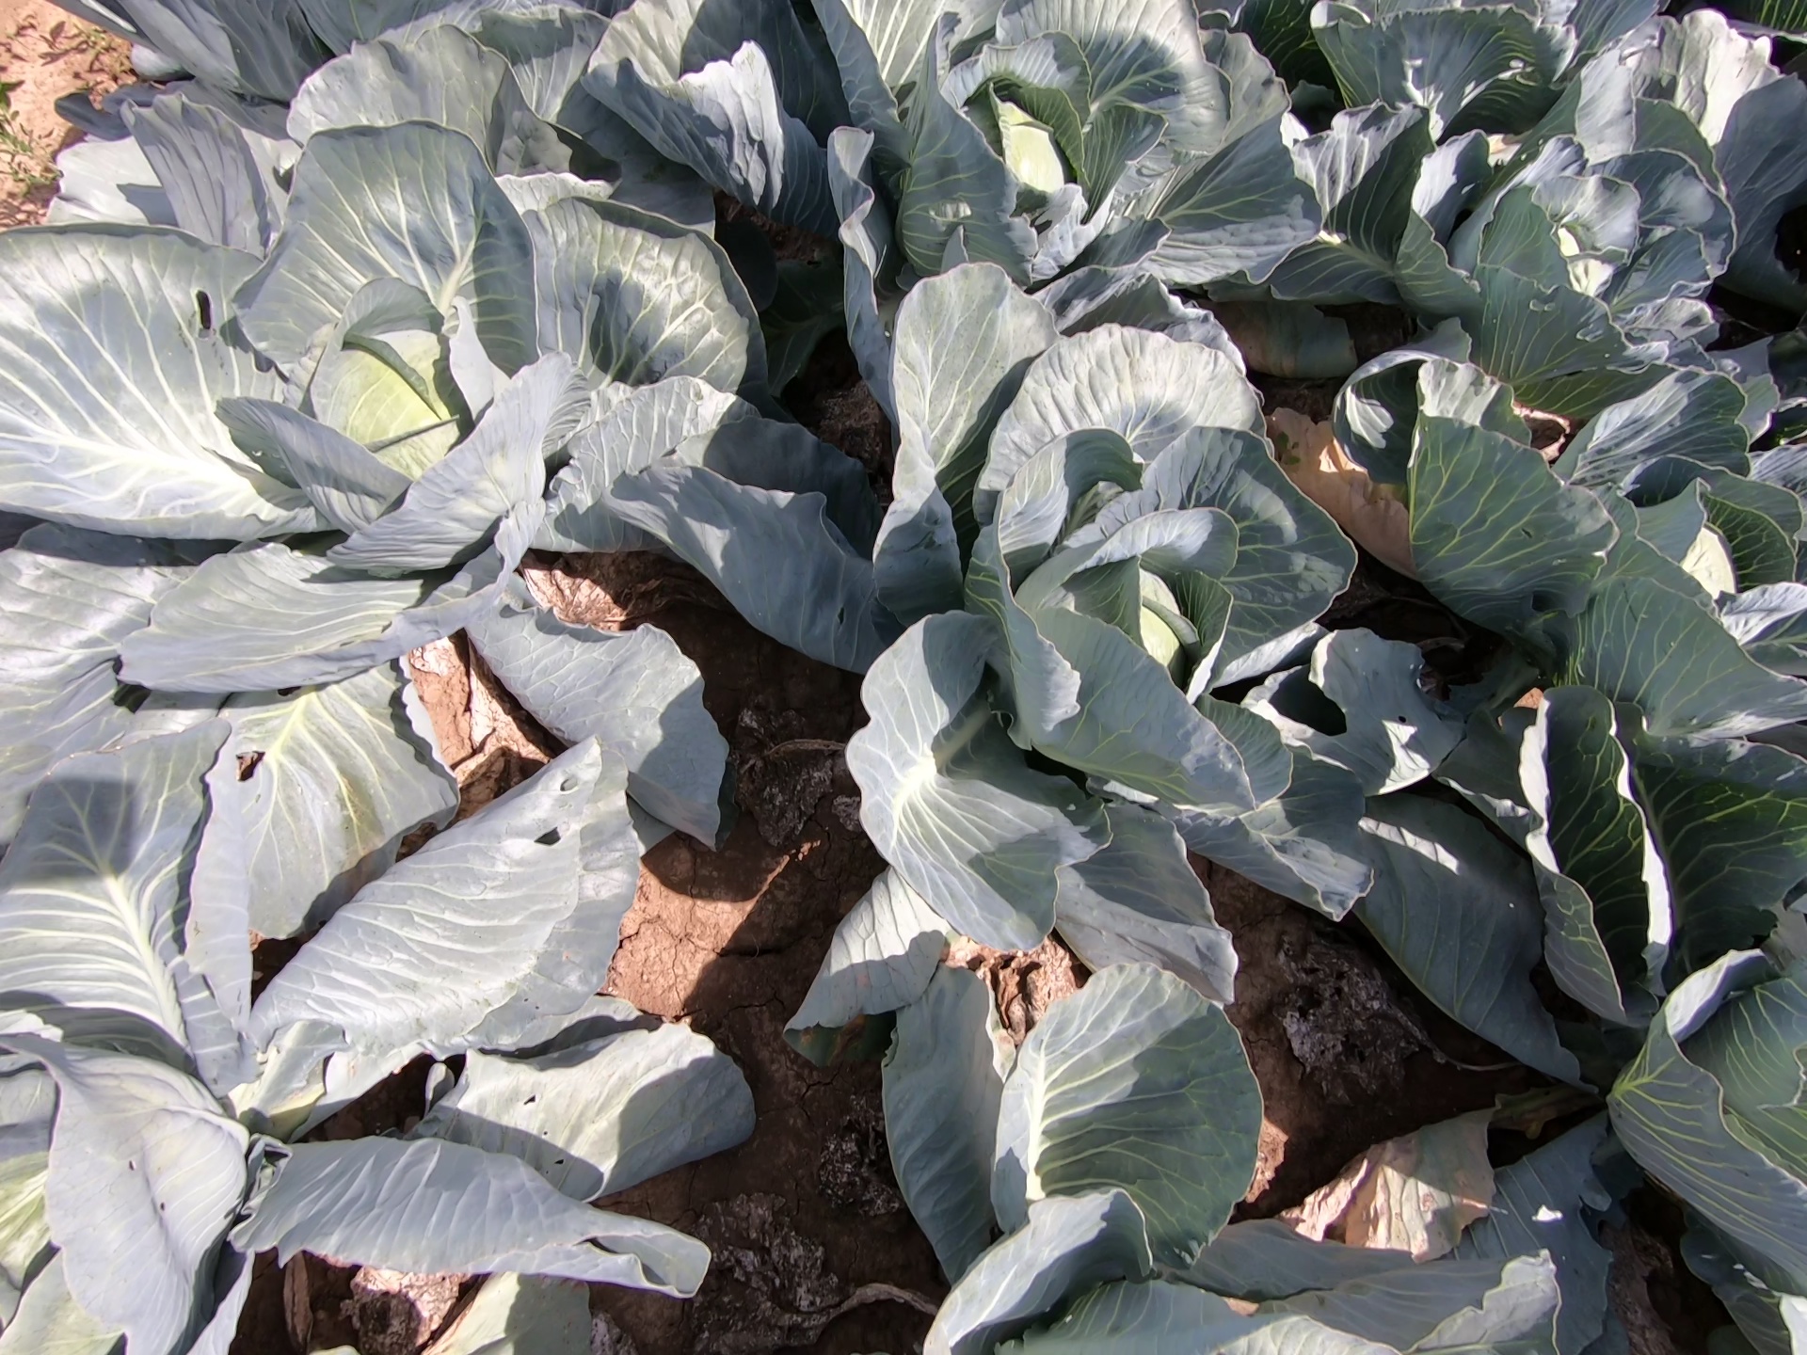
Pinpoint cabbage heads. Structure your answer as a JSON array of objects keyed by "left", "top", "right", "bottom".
[
  {"left": 924, "top": 98, "right": 1080, "bottom": 247},
  {"left": 290, "top": 324, "right": 538, "bottom": 559},
  {"left": 0, "top": 1054, "right": 244, "bottom": 1326},
  {"left": 1012, "top": 552, "right": 1192, "bottom": 741},
  {"left": 1473, "top": 215, "right": 1608, "bottom": 332},
  {"left": 1607, "top": 508, "right": 1740, "bottom": 646}
]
